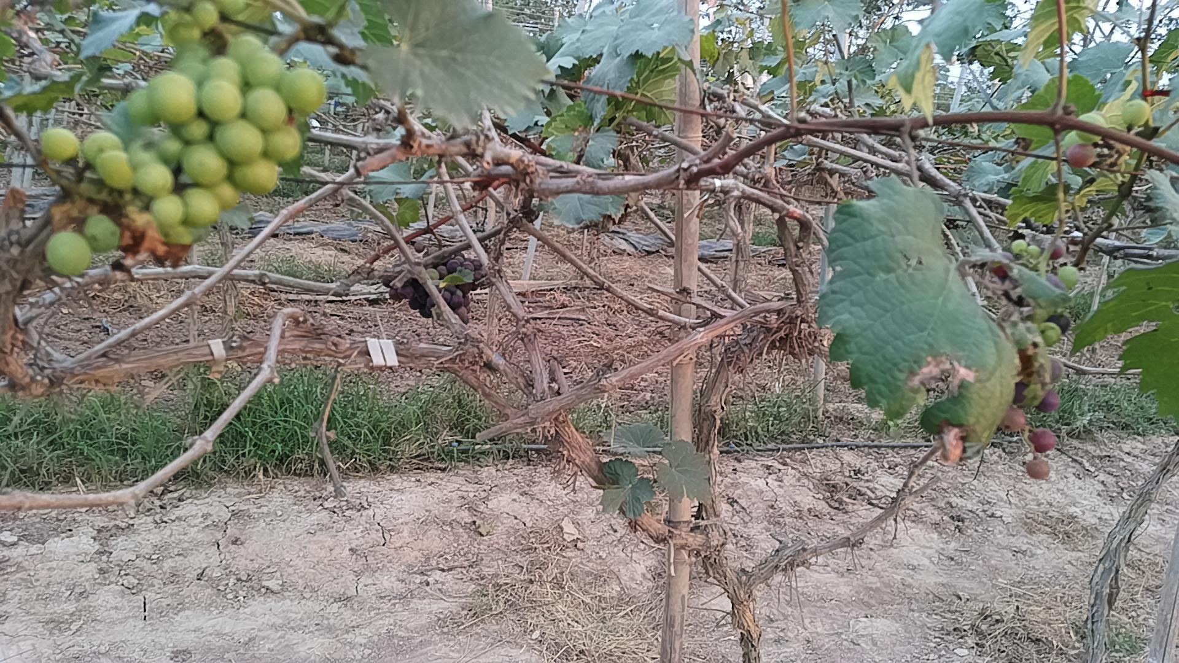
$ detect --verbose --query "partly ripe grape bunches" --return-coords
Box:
[385,256,484,322]
[1060,85,1152,167]
[985,241,1078,479]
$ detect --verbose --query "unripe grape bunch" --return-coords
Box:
[40,0,326,273]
